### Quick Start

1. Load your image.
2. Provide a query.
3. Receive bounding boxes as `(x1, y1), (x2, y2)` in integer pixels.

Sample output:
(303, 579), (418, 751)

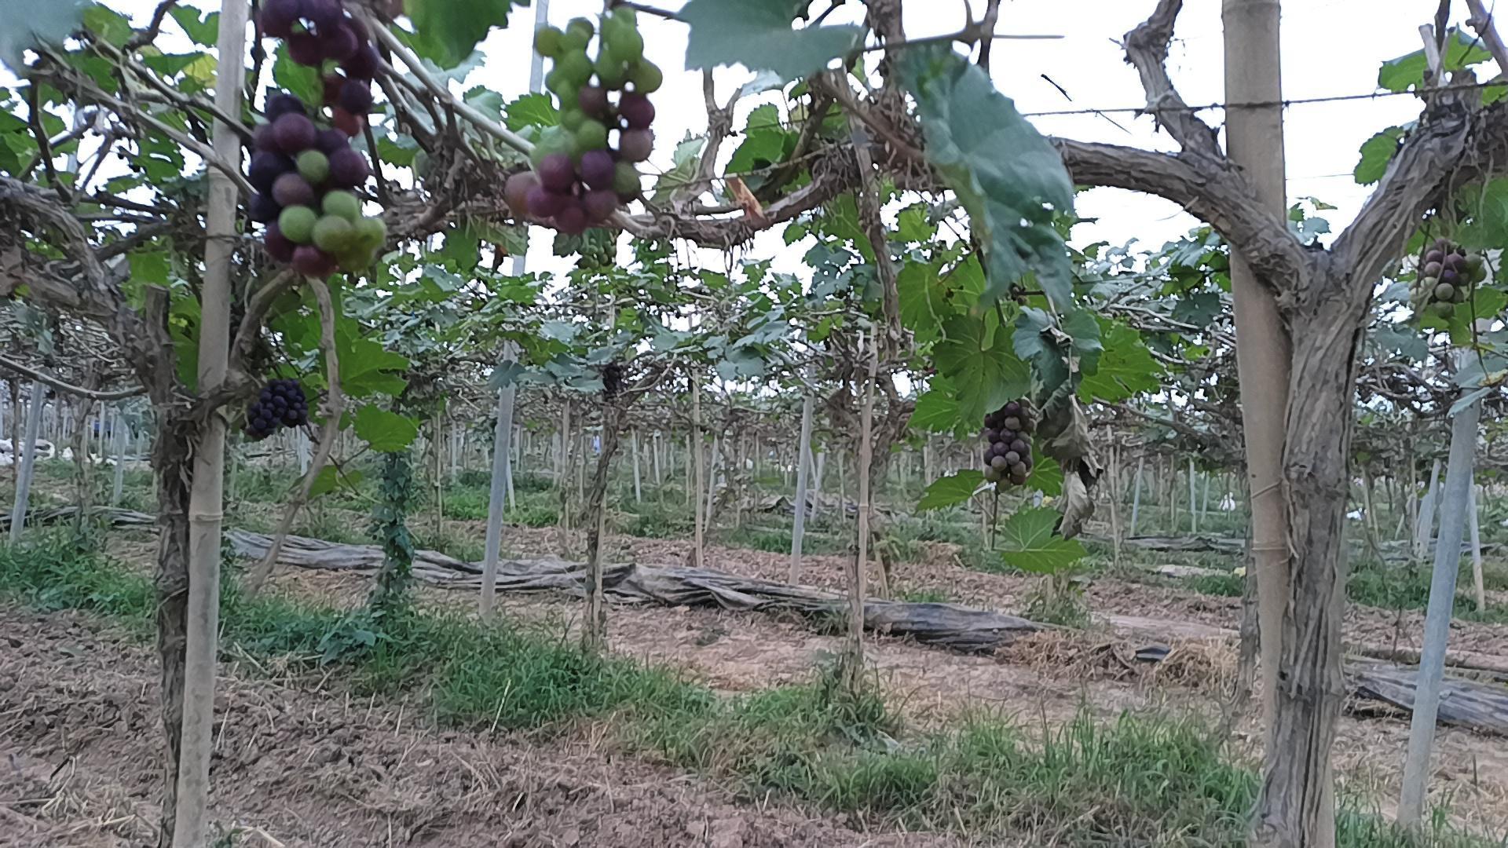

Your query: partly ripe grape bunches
(503, 0), (661, 235)
(1411, 238), (1485, 319)
(980, 398), (1035, 488)
(249, 0), (383, 278)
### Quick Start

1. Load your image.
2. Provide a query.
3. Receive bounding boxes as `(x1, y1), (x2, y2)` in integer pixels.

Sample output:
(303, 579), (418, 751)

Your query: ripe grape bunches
(243, 378), (309, 440)
(599, 361), (628, 405)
